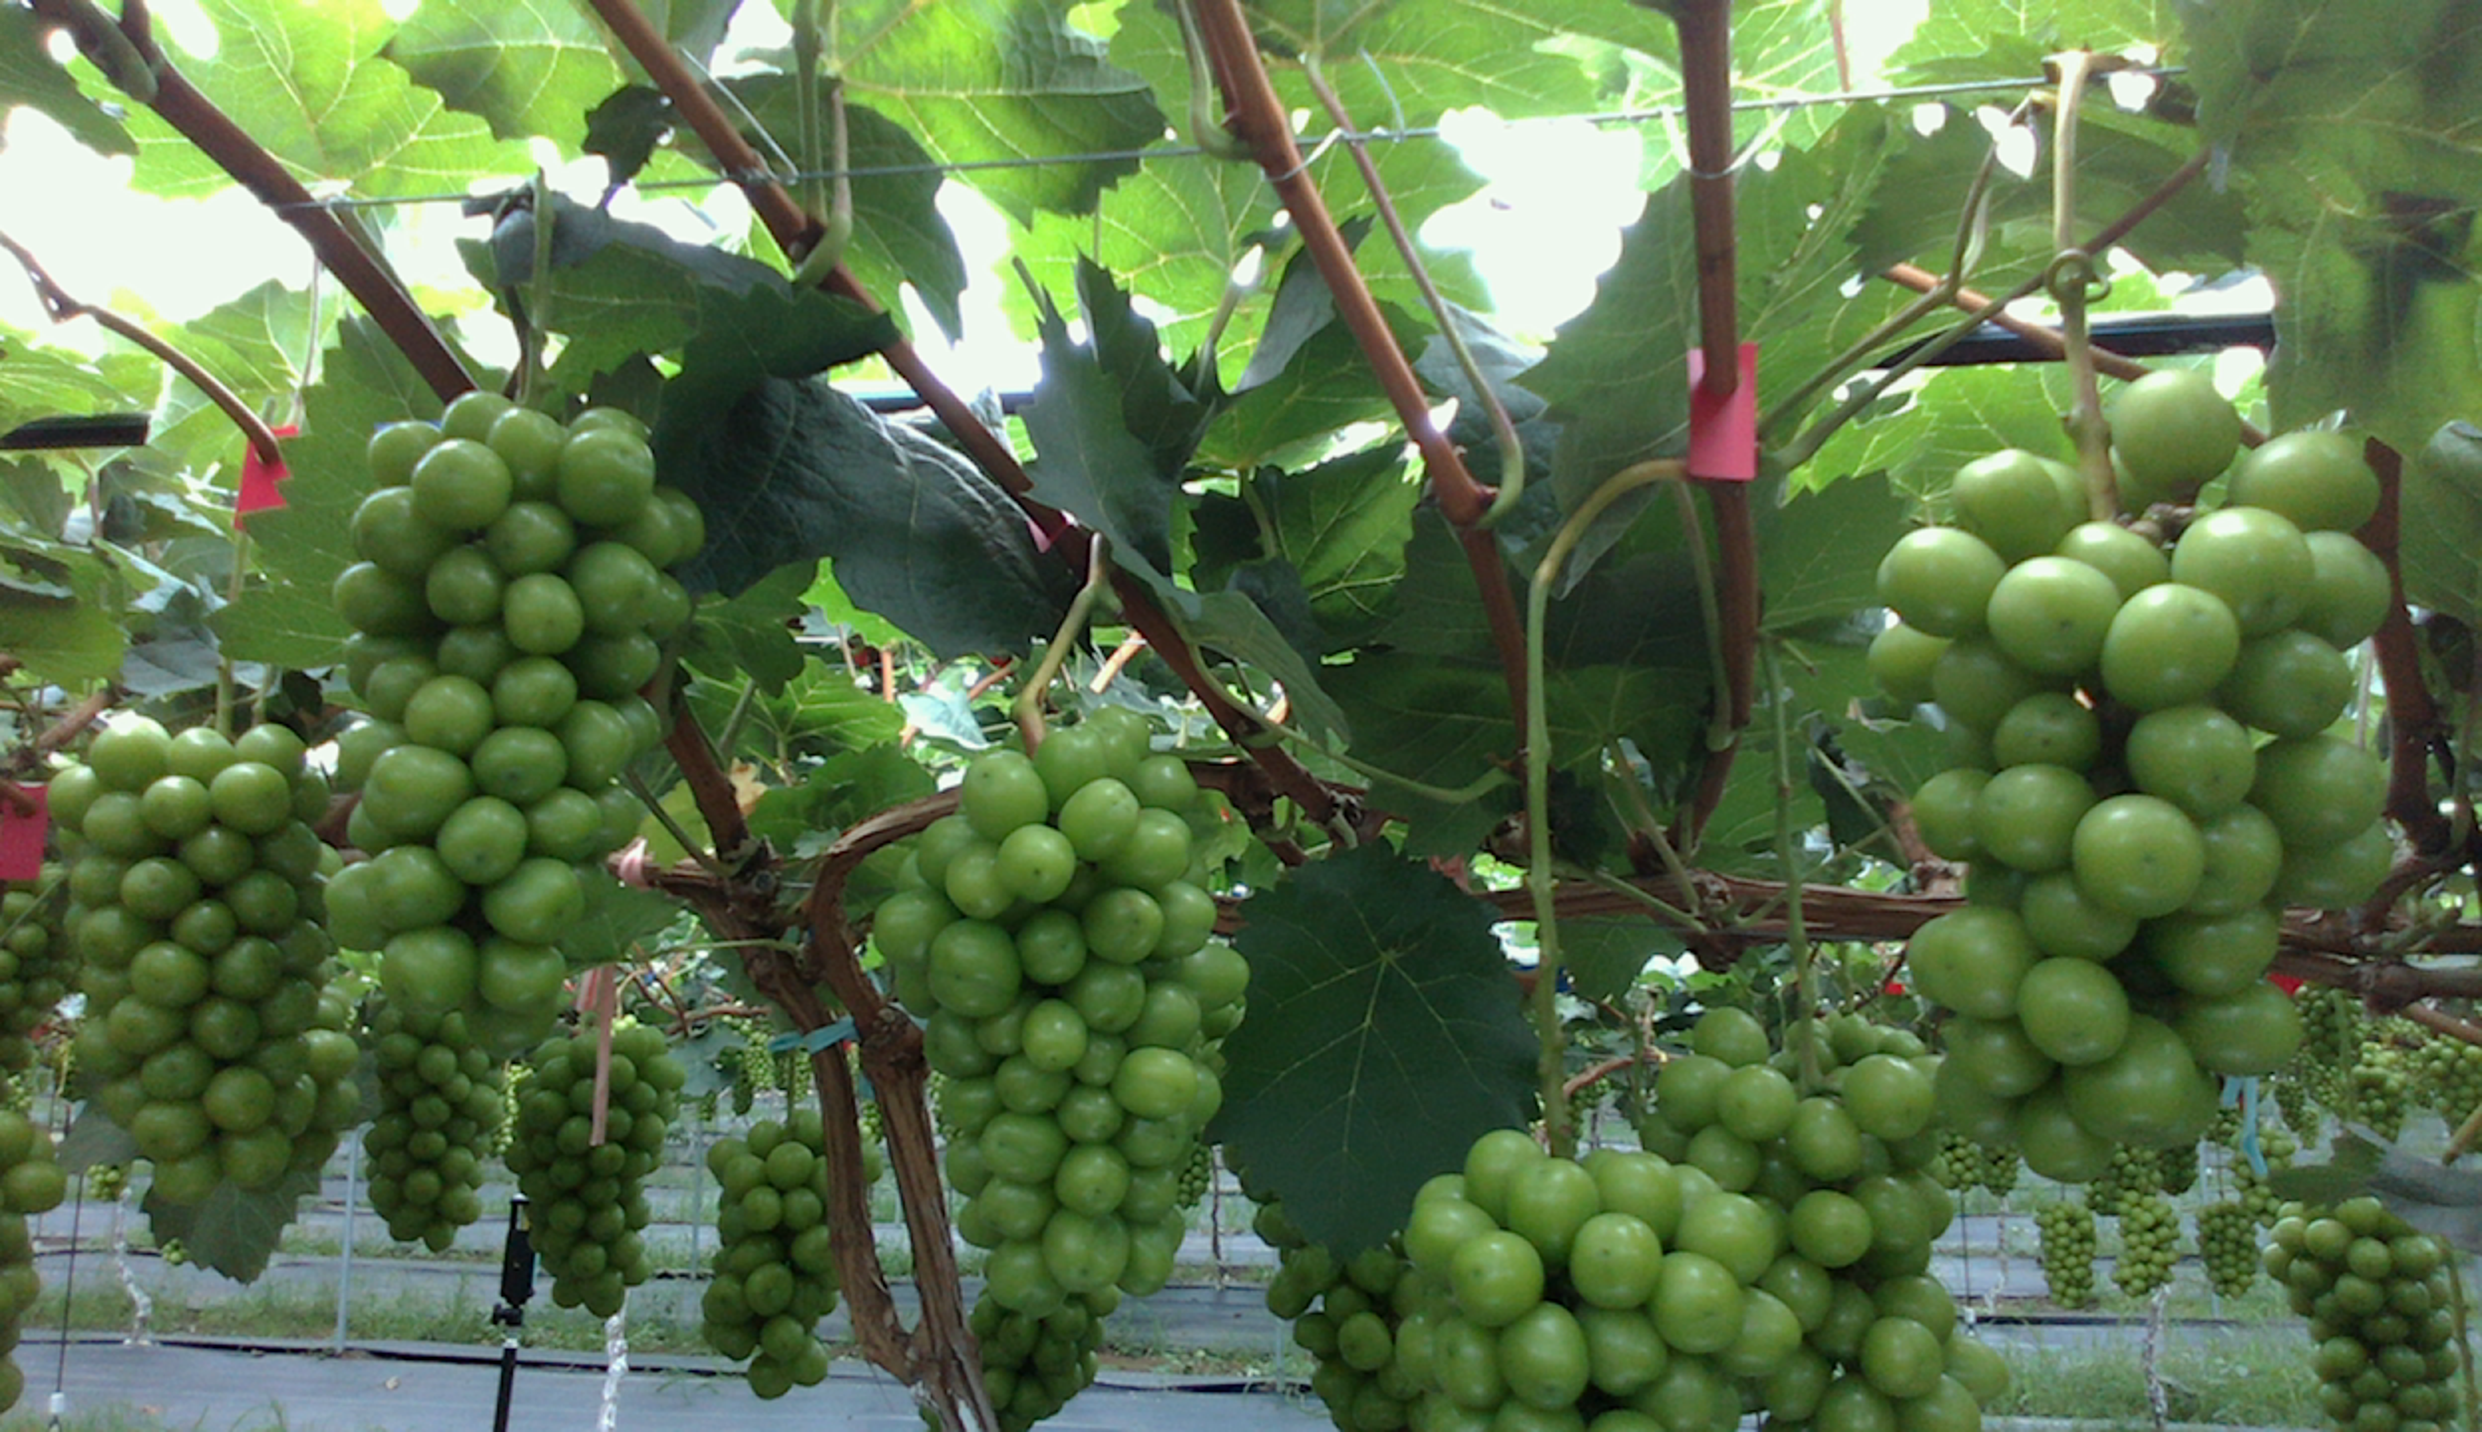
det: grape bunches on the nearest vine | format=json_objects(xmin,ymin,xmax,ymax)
[
  {"xmin": 0, "ymin": 1110, "xmax": 70, "ymax": 1412},
  {"xmin": 1394, "ymin": 1130, "xmax": 1802, "ymax": 1430},
  {"xmin": 1639, "ymin": 1006, "xmax": 2011, "ymax": 1430},
  {"xmin": 46, "ymin": 714, "xmax": 360, "ymax": 1209},
  {"xmin": 873, "ymin": 702, "xmax": 1247, "ymax": 1323},
  {"xmin": 324, "ymin": 394, "xmax": 706, "ymax": 1062},
  {"xmin": 1869, "ymin": 366, "xmax": 2396, "ymax": 1185}
]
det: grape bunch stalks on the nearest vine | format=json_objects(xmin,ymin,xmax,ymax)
[
  {"xmin": 1758, "ymin": 630, "xmax": 1820, "ymax": 1096},
  {"xmin": 2050, "ymin": 54, "xmax": 2130, "ymax": 531},
  {"xmin": 1016, "ymin": 531, "xmax": 1112, "ymax": 756},
  {"xmin": 1525, "ymin": 455, "xmax": 1684, "ymax": 1160},
  {"xmin": 521, "ymin": 179, "xmax": 551, "ymax": 412}
]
